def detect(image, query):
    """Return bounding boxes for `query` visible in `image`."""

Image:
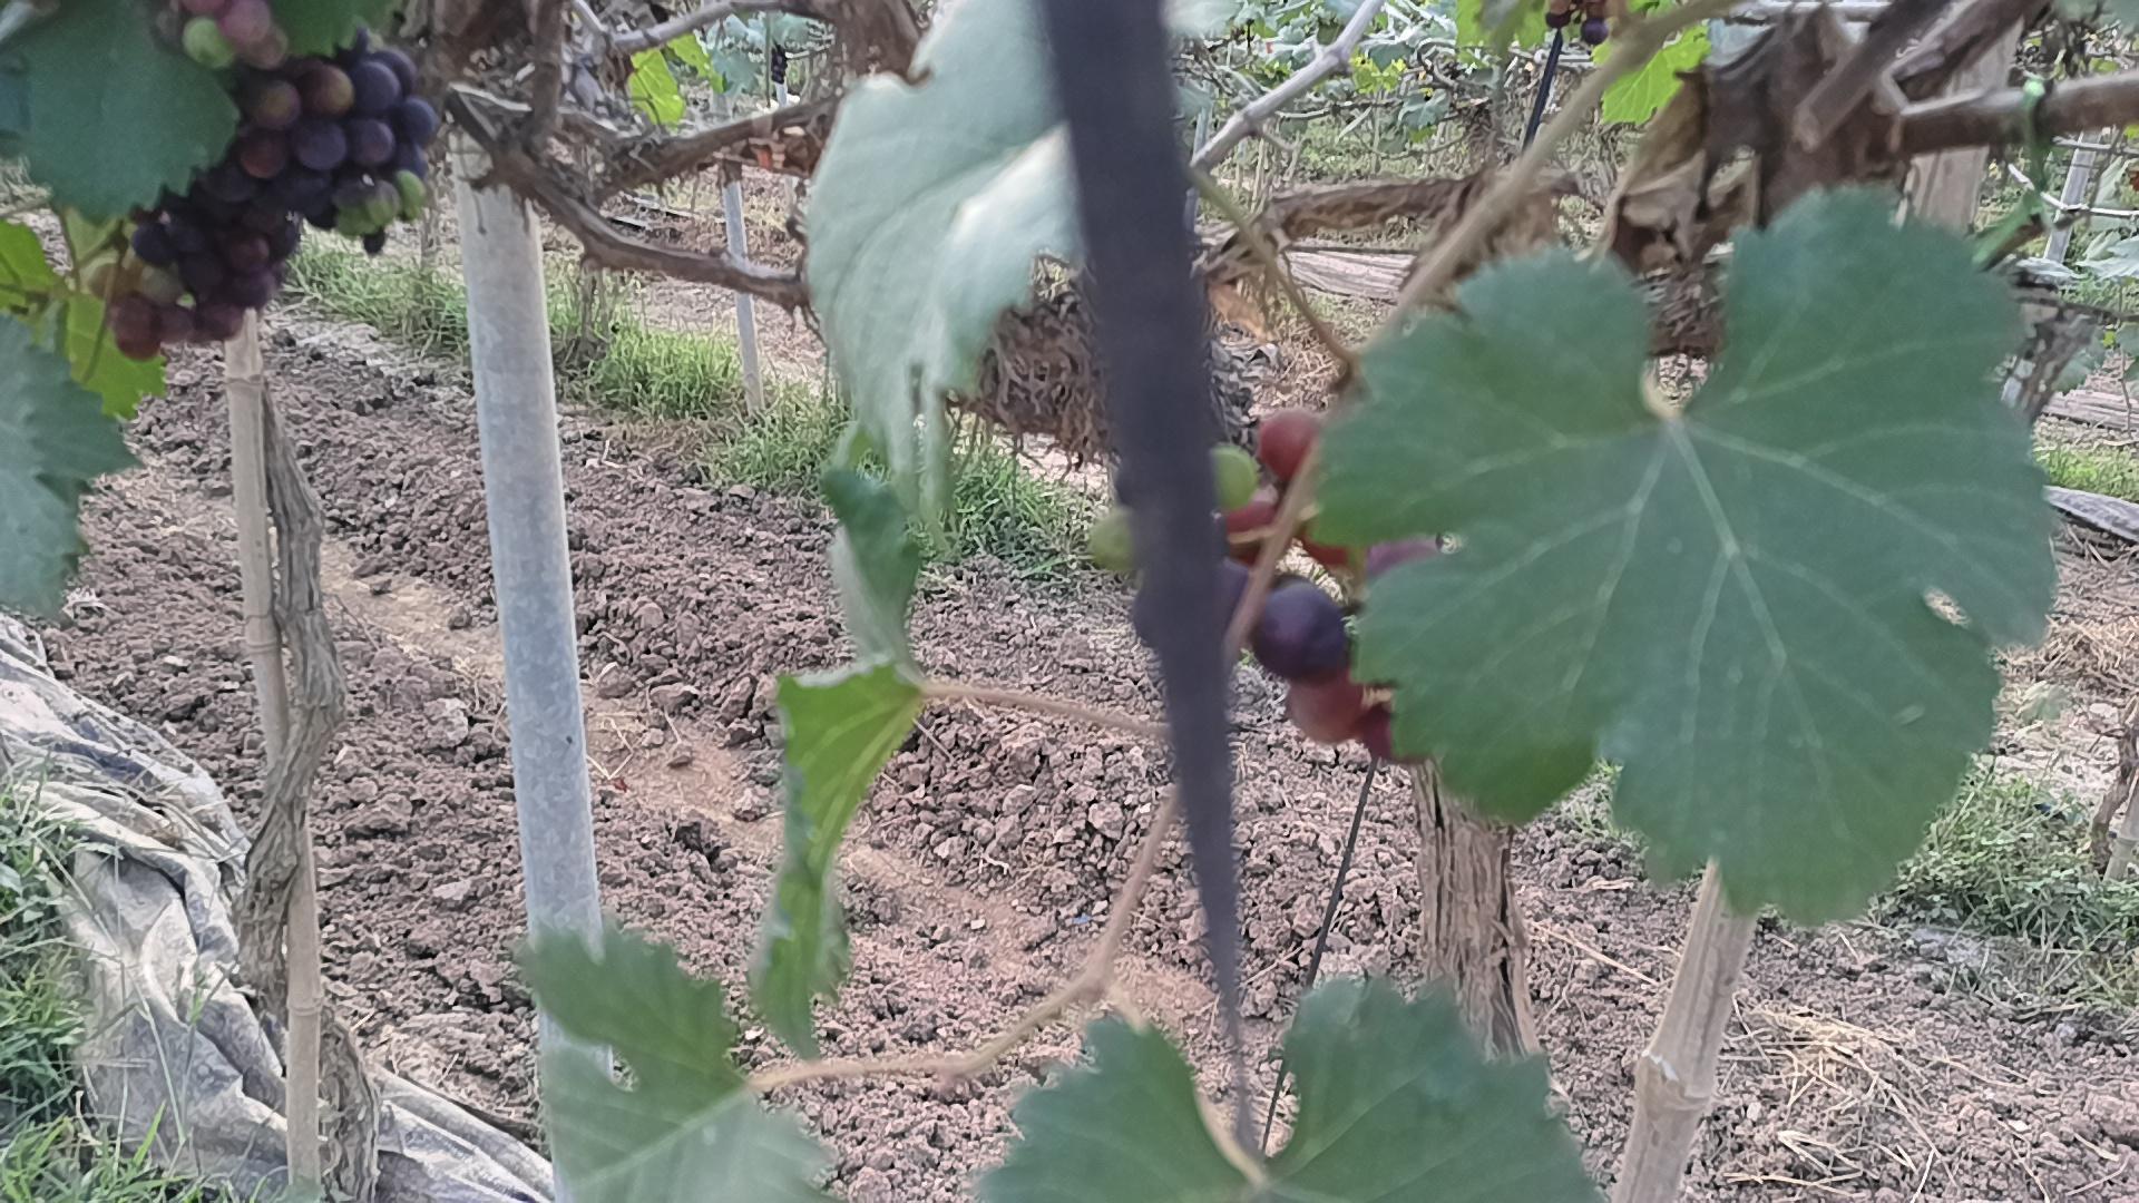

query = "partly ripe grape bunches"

[1084,399,1449,765]
[78,0,440,359]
